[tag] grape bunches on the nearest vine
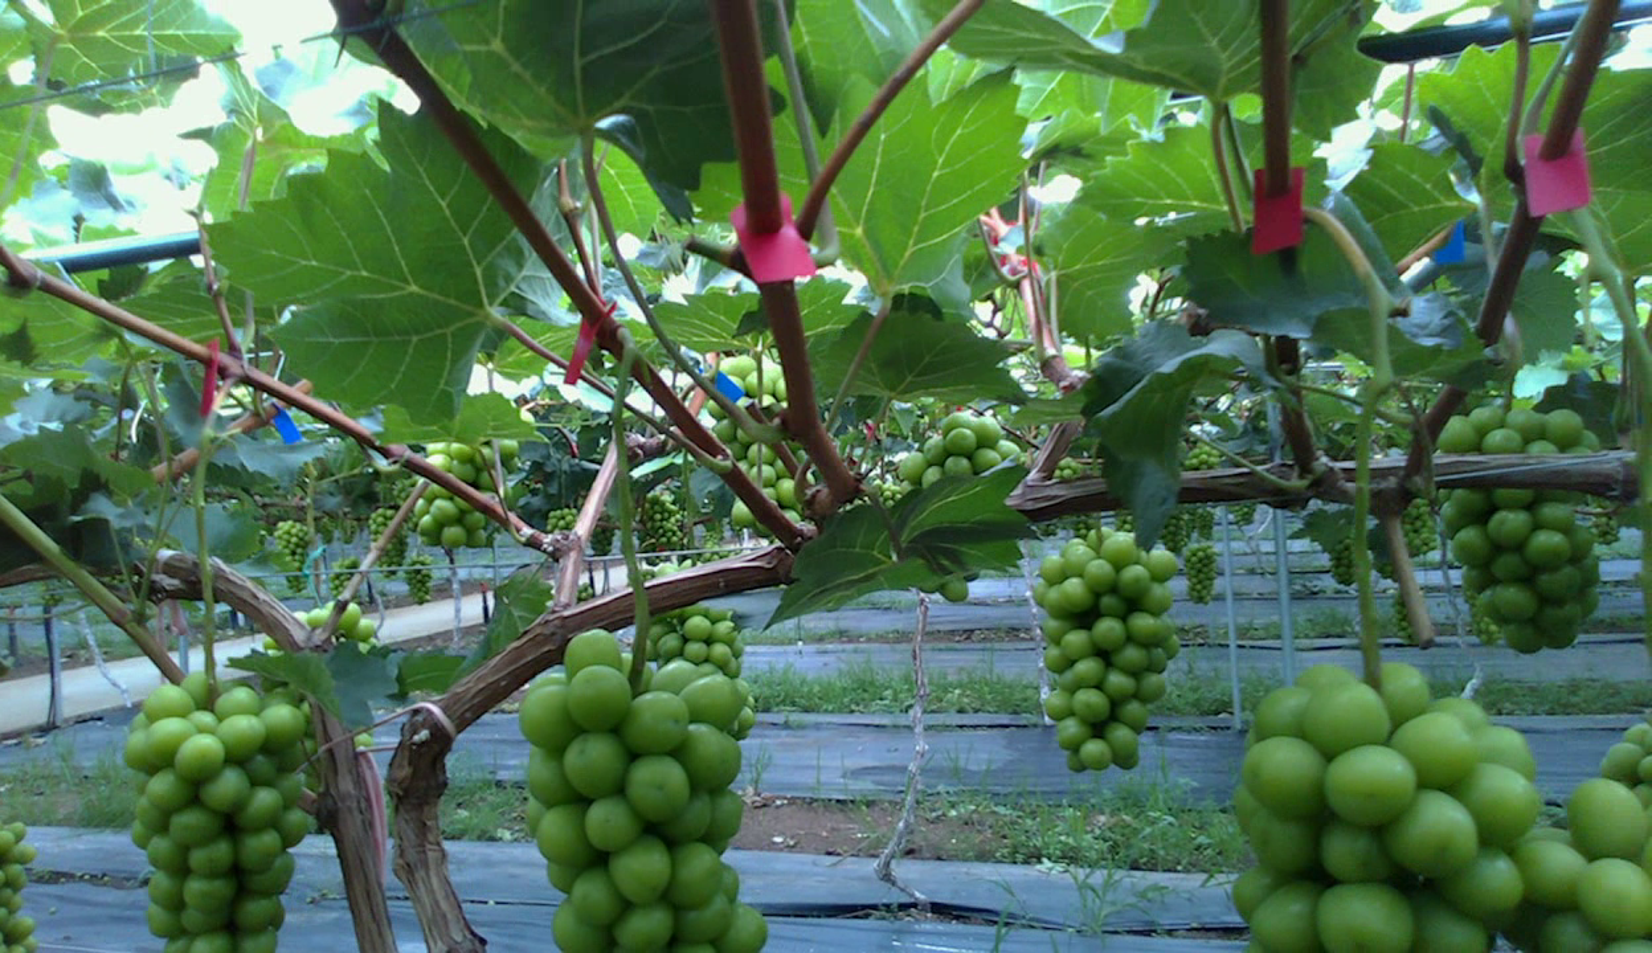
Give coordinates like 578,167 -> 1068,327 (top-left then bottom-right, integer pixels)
1231,659 -> 1539,952
1487,777 -> 1651,952
520,629 -> 768,952
122,671 -> 308,952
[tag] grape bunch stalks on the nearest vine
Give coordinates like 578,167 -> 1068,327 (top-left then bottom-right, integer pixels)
192,376 -> 236,712
613,326 -> 649,698
1304,201 -> 1393,691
